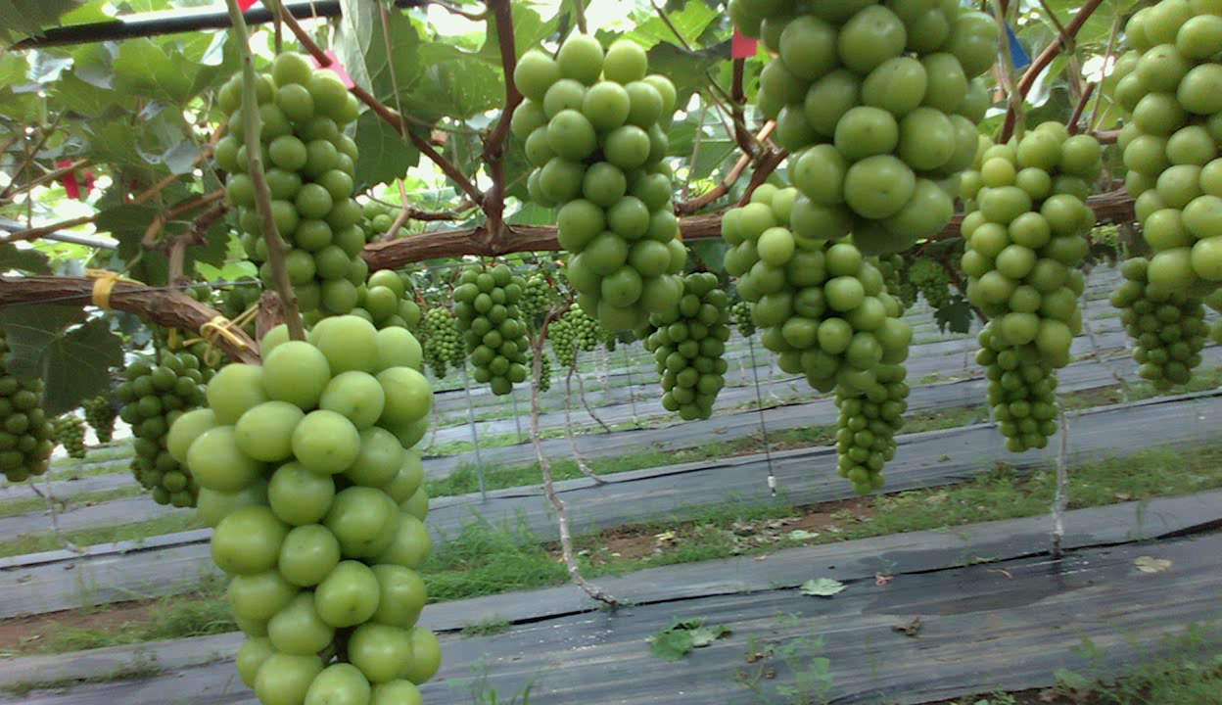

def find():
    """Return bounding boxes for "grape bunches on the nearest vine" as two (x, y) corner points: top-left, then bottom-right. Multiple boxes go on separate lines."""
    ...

(726, 0), (999, 260)
(959, 121), (1102, 354)
(167, 315), (439, 704)
(721, 180), (911, 395)
(1111, 0), (1221, 298)
(215, 53), (368, 315)
(509, 34), (687, 331)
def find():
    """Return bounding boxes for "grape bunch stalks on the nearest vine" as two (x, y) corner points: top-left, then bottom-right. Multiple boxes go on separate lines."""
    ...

(225, 1), (305, 339)
(572, 0), (587, 31)
(270, 0), (282, 54)
(990, 0), (1024, 140)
